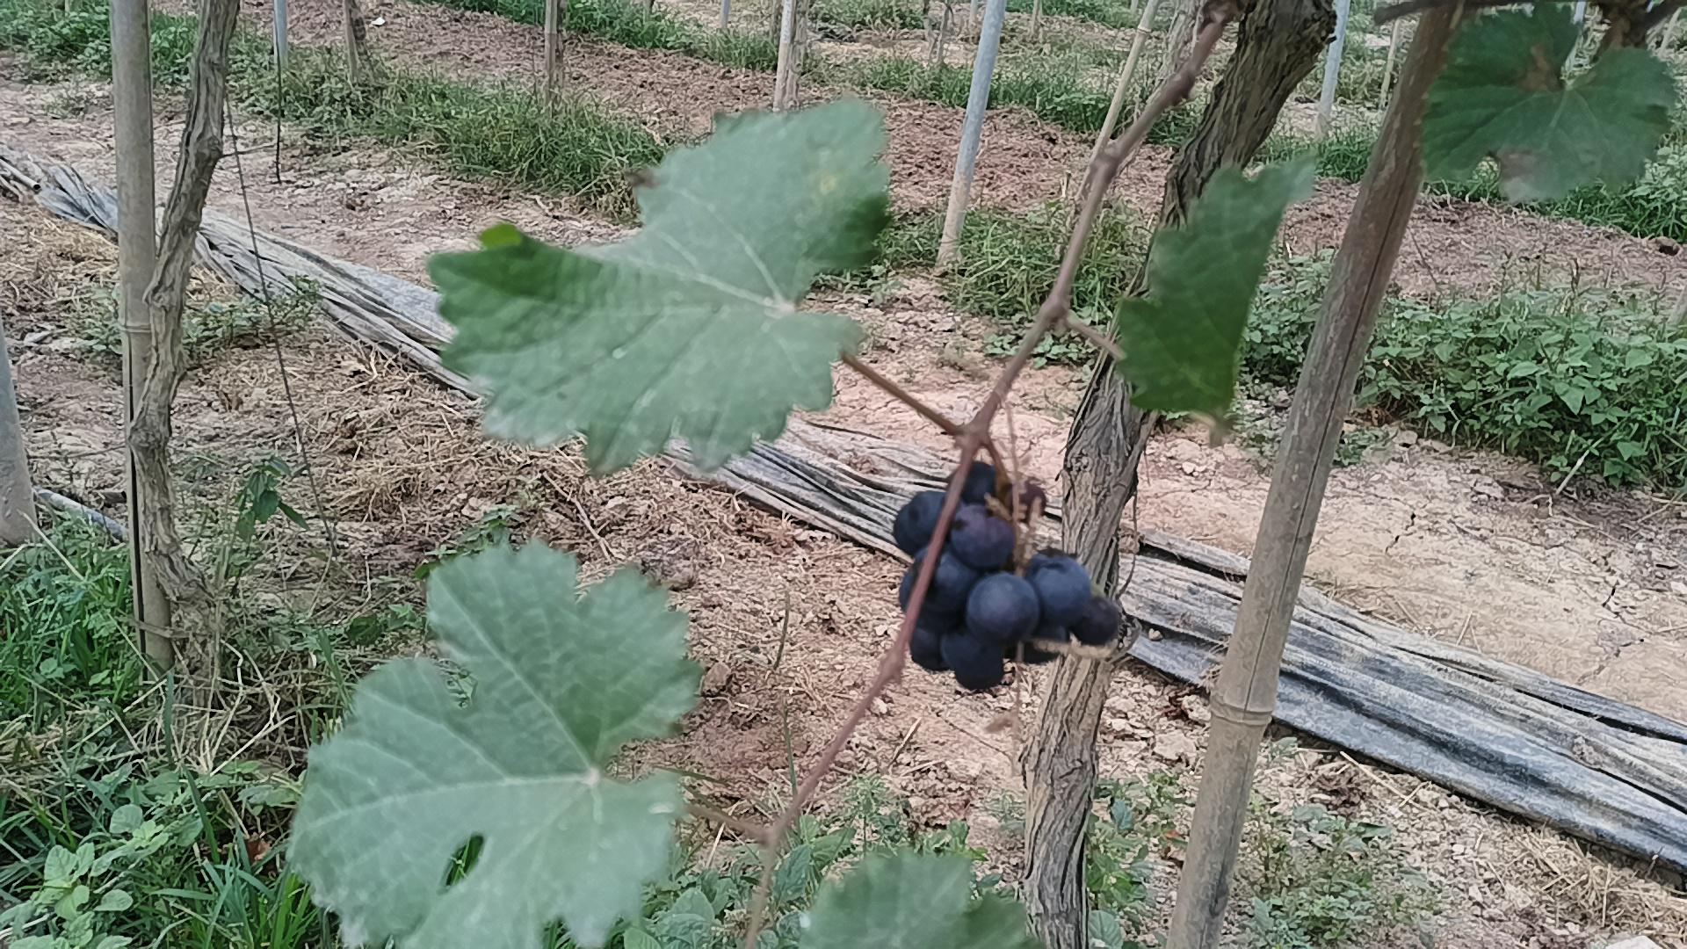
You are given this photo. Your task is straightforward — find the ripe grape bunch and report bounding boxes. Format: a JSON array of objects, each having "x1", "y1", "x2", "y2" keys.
[{"x1": 891, "y1": 462, "x2": 1121, "y2": 692}]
